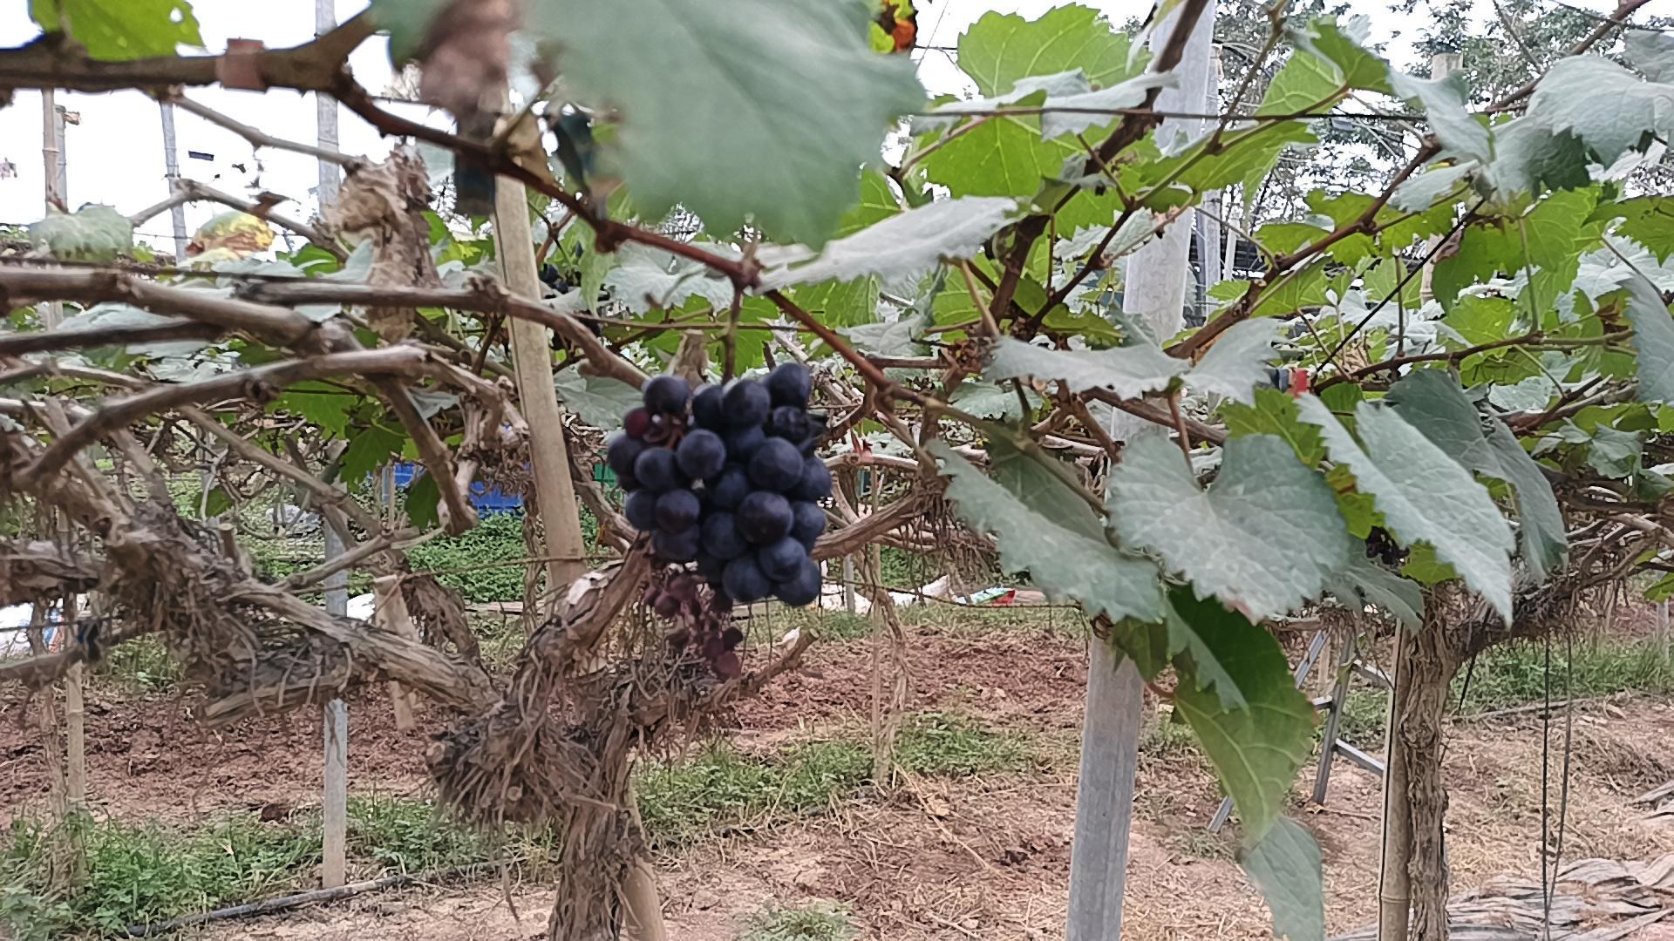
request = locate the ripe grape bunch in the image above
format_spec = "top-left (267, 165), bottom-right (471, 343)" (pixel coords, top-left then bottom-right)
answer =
top-left (608, 362), bottom-right (831, 606)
